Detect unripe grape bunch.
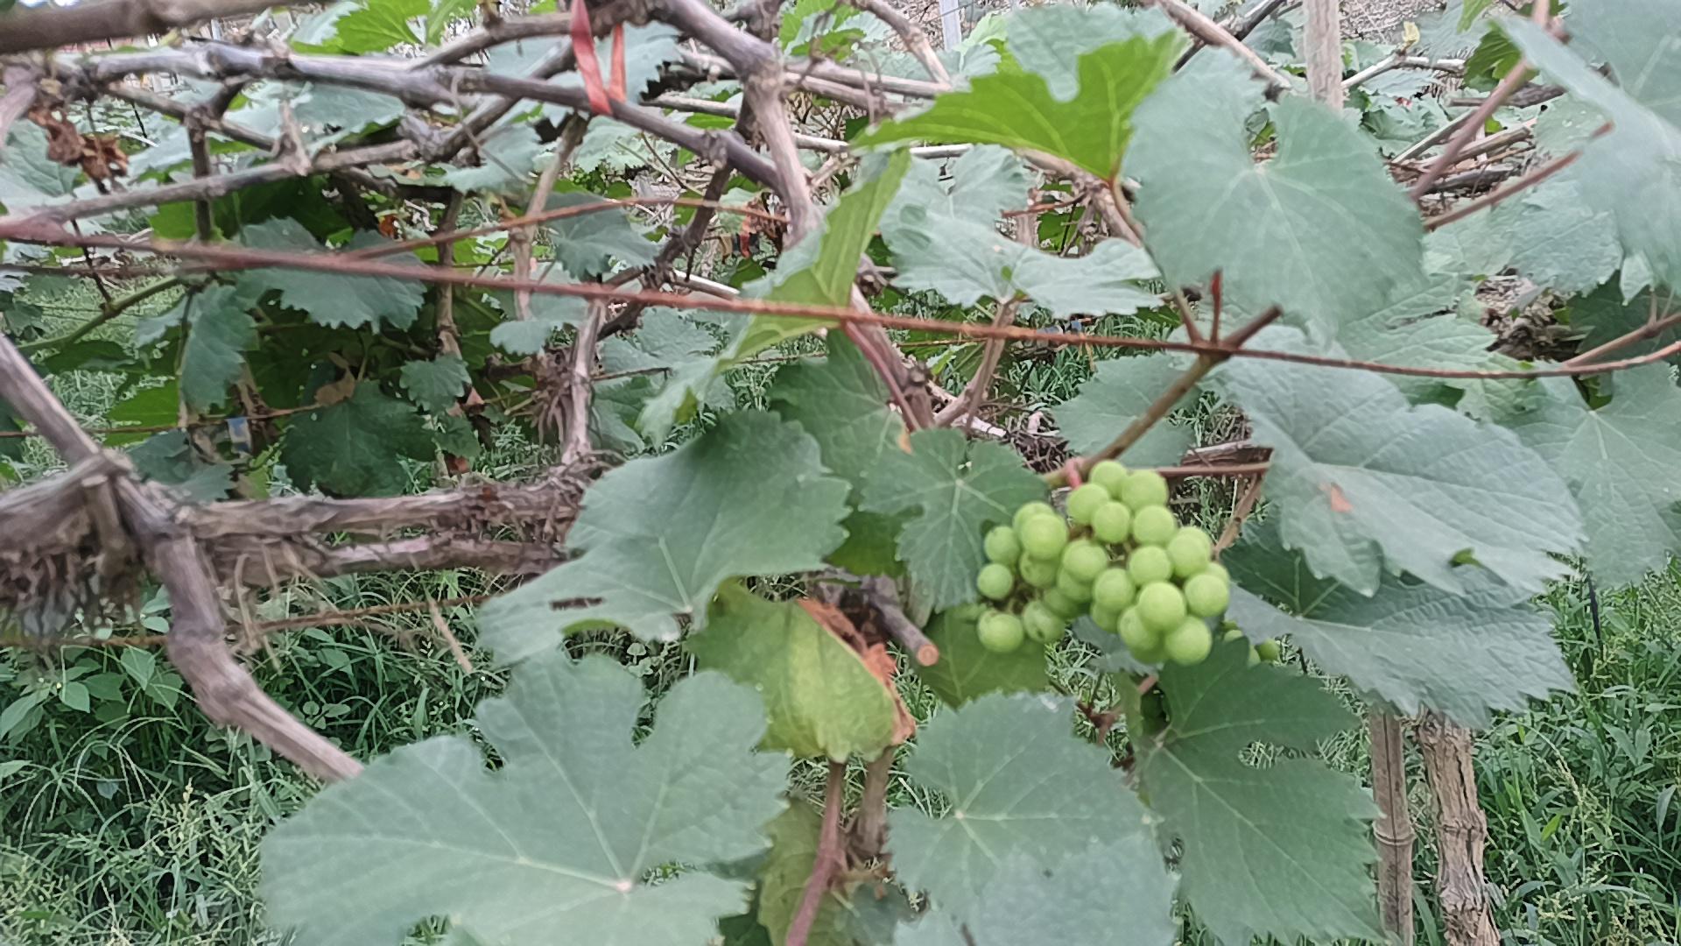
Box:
[975,460,1228,670]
